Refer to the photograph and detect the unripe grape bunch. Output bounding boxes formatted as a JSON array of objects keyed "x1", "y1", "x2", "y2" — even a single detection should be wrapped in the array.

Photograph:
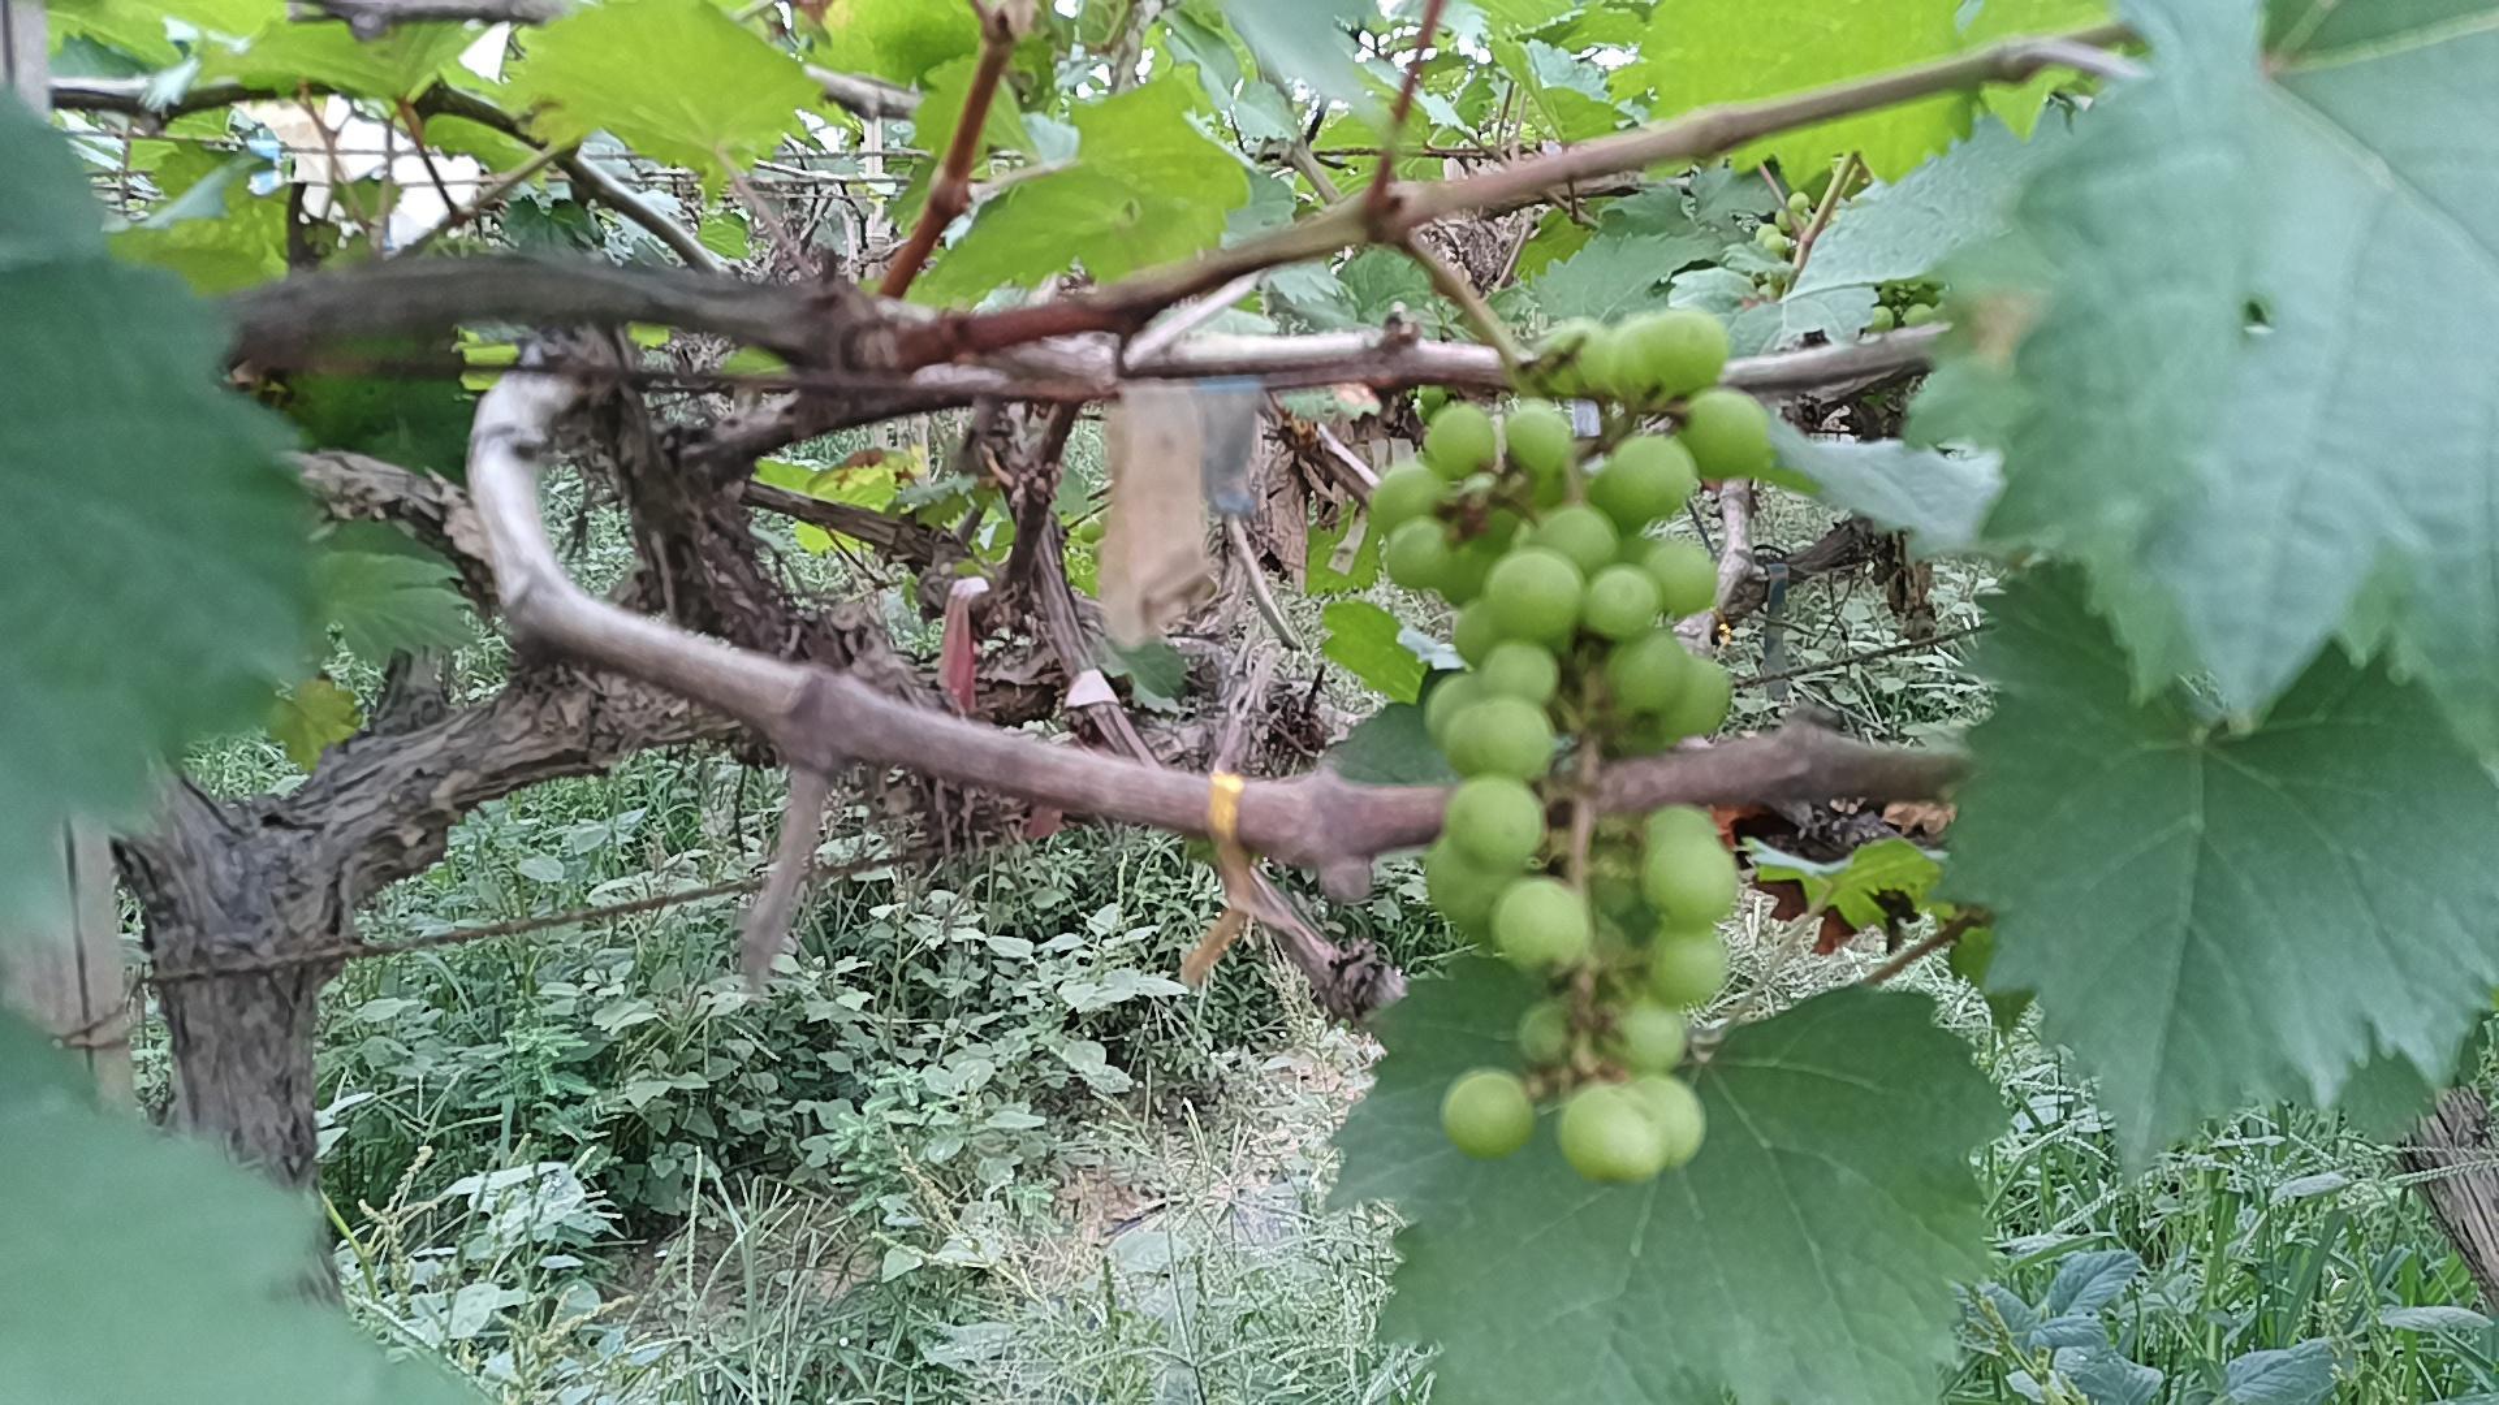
[{"x1": 1371, "y1": 310, "x2": 1773, "y2": 1183}]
